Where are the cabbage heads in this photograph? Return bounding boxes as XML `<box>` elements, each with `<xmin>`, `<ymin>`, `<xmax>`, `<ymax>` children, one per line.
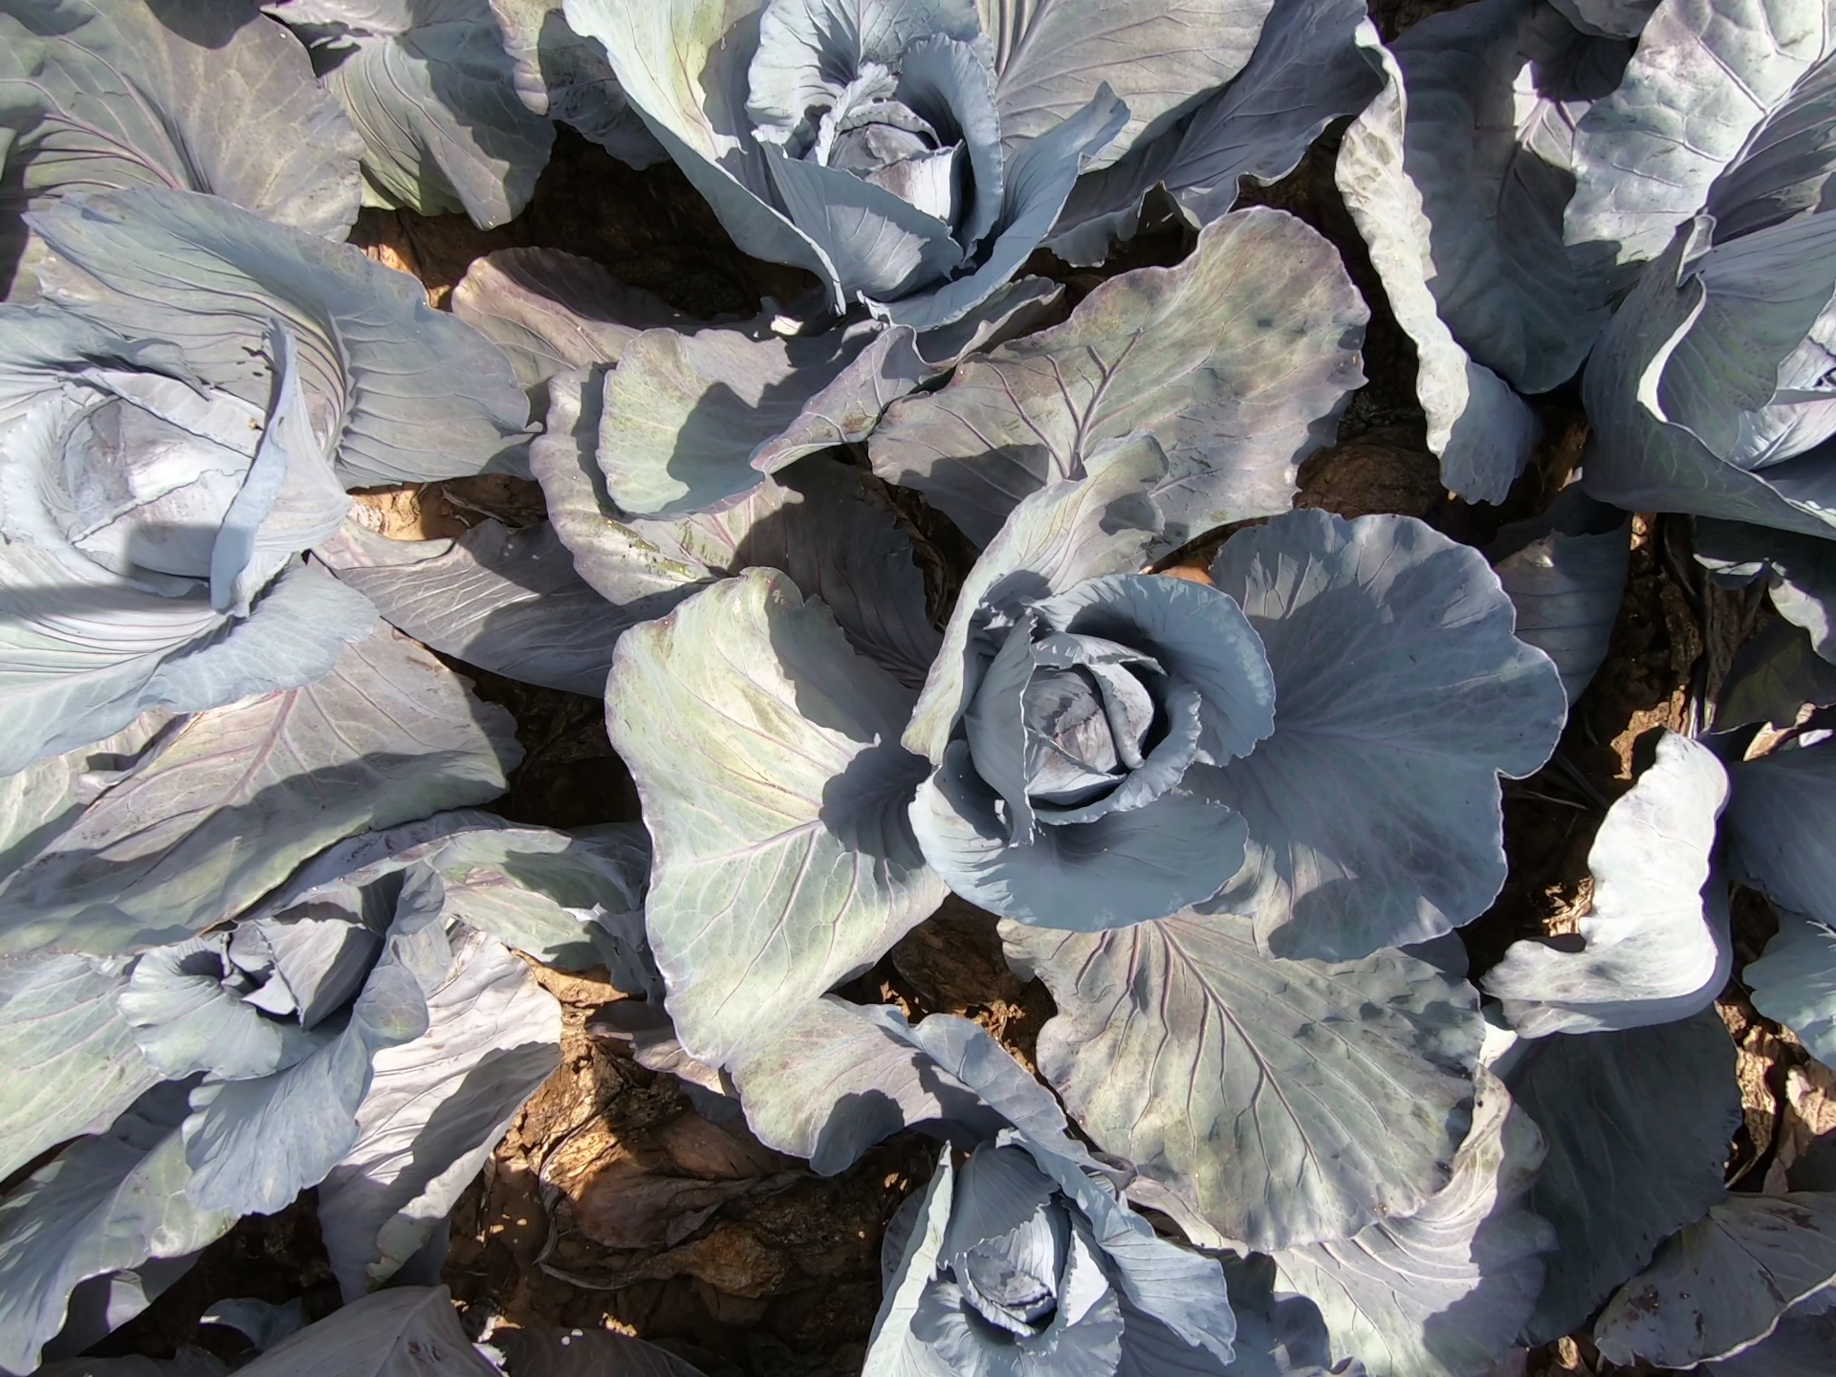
<box><xmin>226</xmin><ymin>877</ymin><xmax>362</xmax><ymax>1002</ymax></box>
<box><xmin>1664</xmin><ymin>222</ymin><xmax>1834</xmax><ymax>466</ymax></box>
<box><xmin>805</xmin><ymin>114</ymin><xmax>960</xmax><ymax>288</ymax></box>
<box><xmin>39</xmin><ymin>386</ymin><xmax>299</xmax><ymax>578</ymax></box>
<box><xmin>977</xmin><ymin>642</ymin><xmax>1150</xmax><ymax>805</ymax></box>
<box><xmin>946</xmin><ymin>1180</ymin><xmax>1079</xmax><ymax>1320</ymax></box>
